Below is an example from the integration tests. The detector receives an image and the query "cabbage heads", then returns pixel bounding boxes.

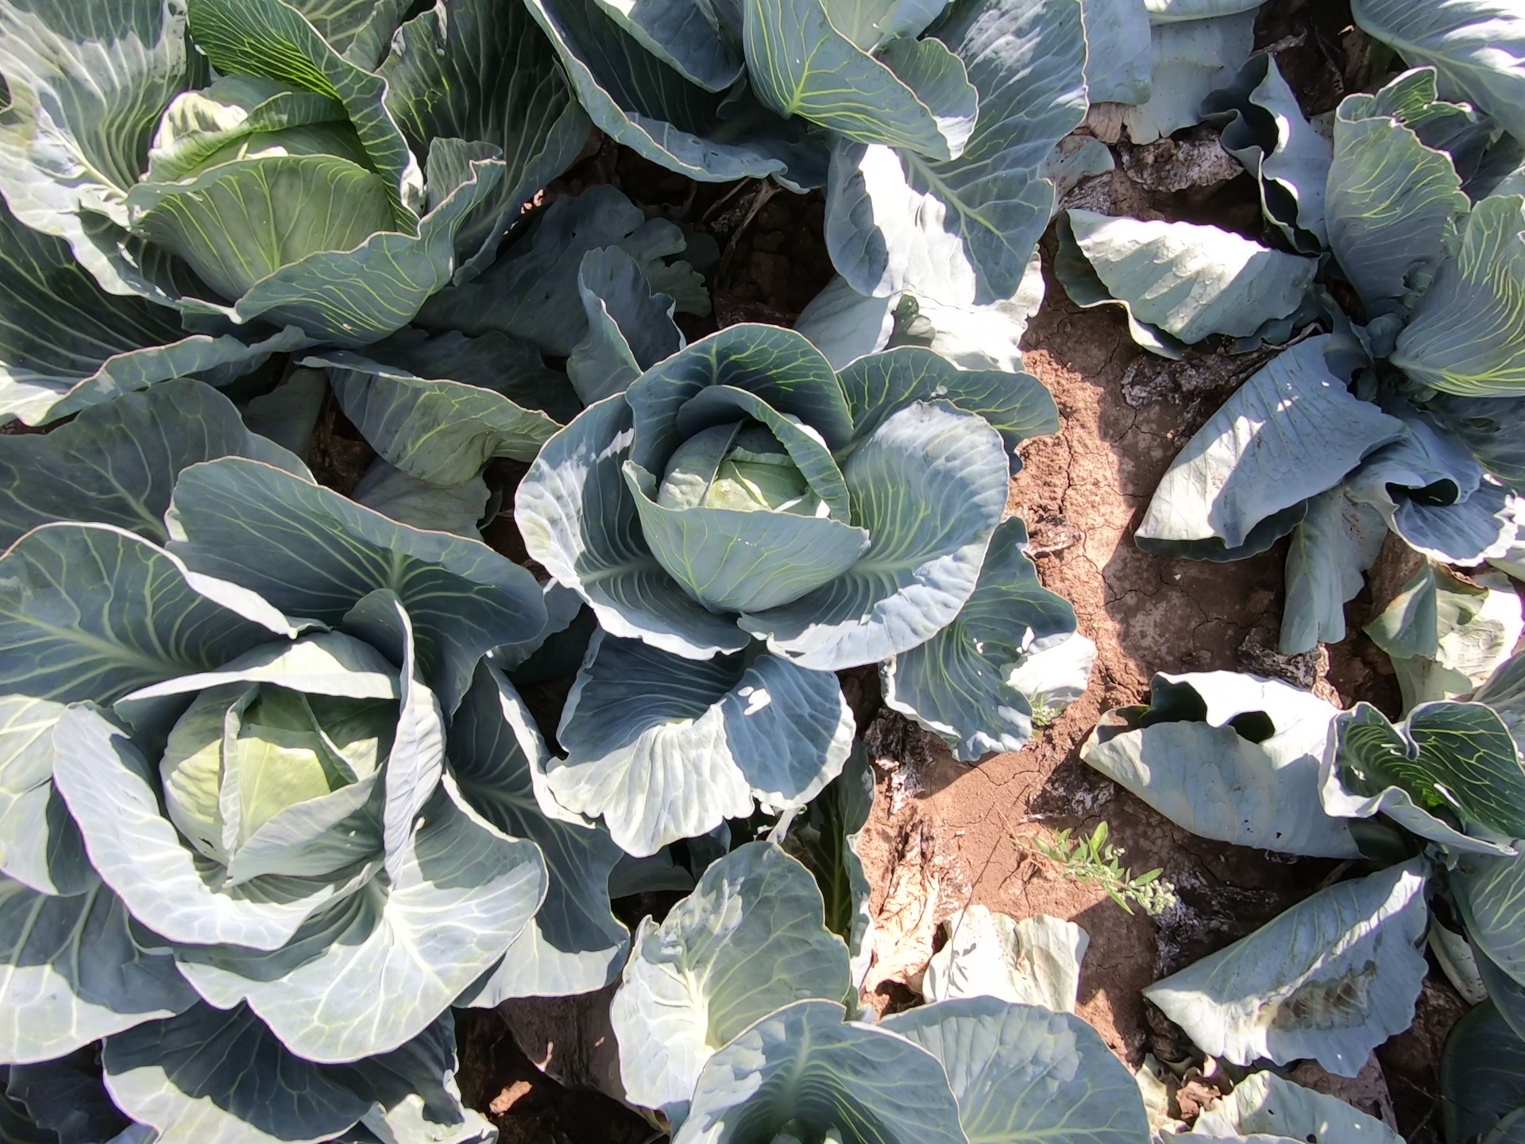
[661,420,837,589]
[160,637,434,875]
[137,71,373,295]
